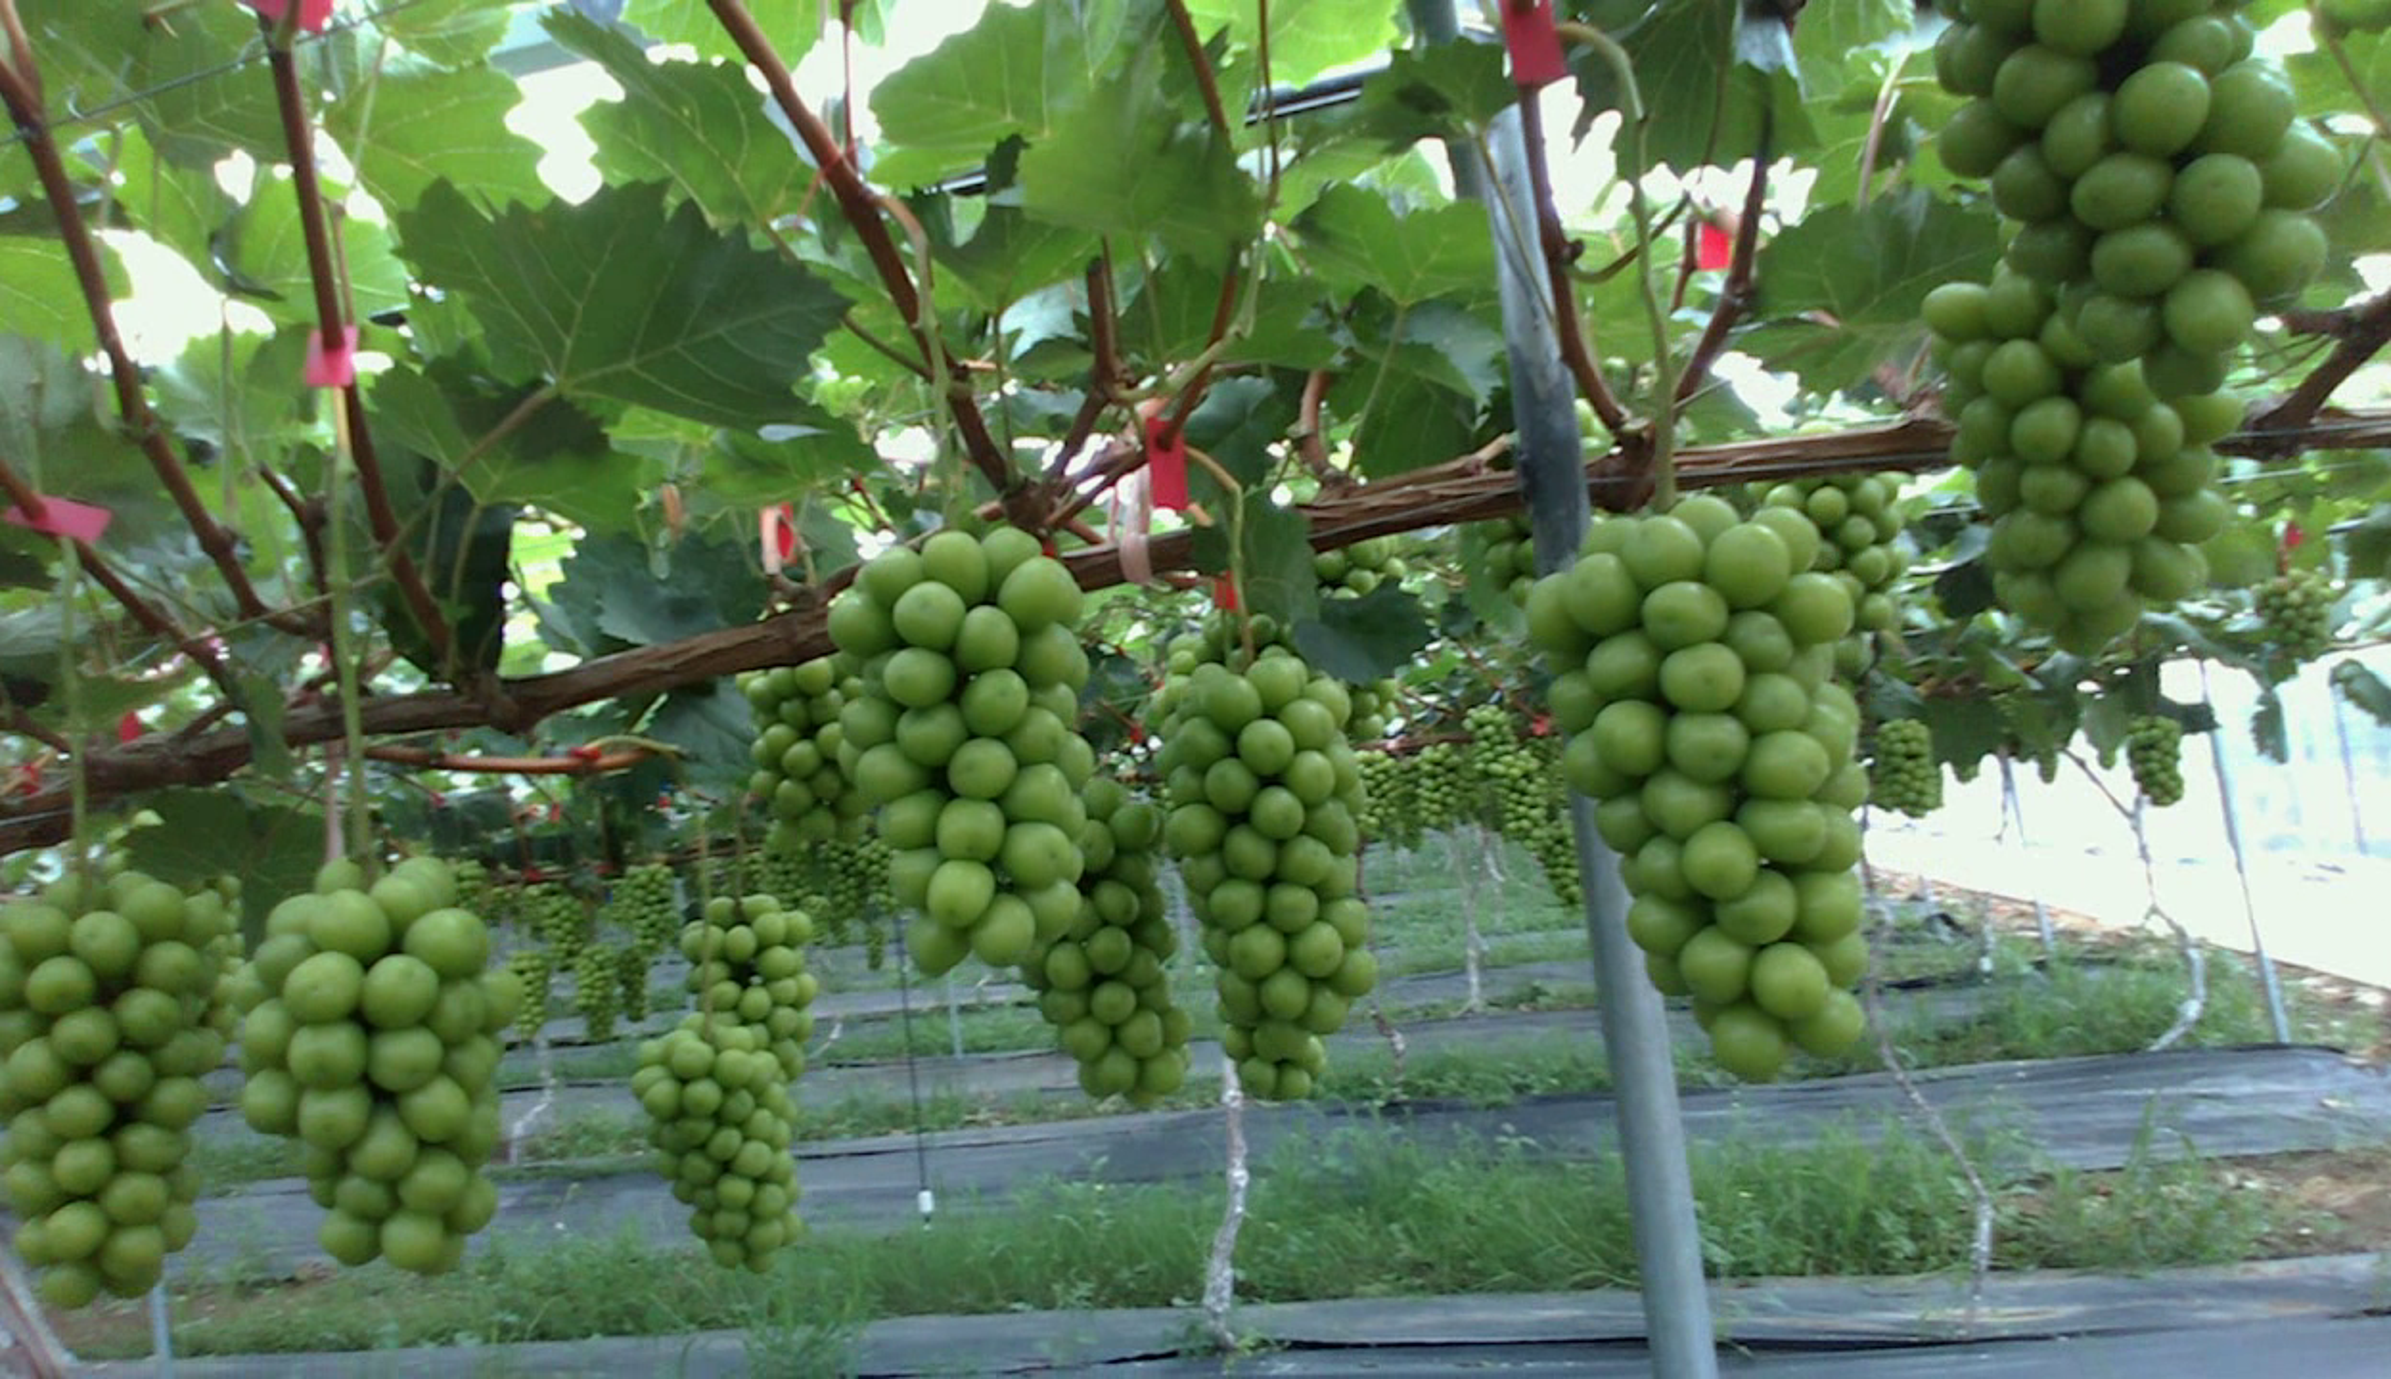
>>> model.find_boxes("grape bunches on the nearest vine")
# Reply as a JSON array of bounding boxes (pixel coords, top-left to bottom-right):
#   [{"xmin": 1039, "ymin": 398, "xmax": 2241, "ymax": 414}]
[
  {"xmin": 1931, "ymin": 2, "xmax": 2341, "ymax": 402},
  {"xmin": 1527, "ymin": 500, "xmax": 1872, "ymax": 1086},
  {"xmin": 1925, "ymin": 262, "xmax": 2243, "ymax": 655},
  {"xmin": 828, "ymin": 527, "xmax": 1094, "ymax": 973},
  {"xmin": 1157, "ymin": 655, "xmax": 1374, "ymax": 1103},
  {"xmin": 234, "ymin": 856, "xmax": 521, "ymax": 1276},
  {"xmin": 0, "ymin": 868, "xmax": 222, "ymax": 1312},
  {"xmin": 1027, "ymin": 774, "xmax": 1194, "ymax": 1115},
  {"xmin": 630, "ymin": 1013, "xmax": 799, "ymax": 1276}
]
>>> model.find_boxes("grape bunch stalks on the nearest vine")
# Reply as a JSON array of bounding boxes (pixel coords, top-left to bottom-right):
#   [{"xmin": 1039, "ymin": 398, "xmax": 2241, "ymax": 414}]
[
  {"xmin": 586, "ymin": 735, "xmax": 713, "ymax": 1042},
  {"xmin": 1558, "ymin": 19, "xmax": 1676, "ymax": 513},
  {"xmin": 1186, "ymin": 444, "xmax": 1257, "ymax": 668},
  {"xmin": 330, "ymin": 385, "xmax": 377, "ymax": 891},
  {"xmin": 874, "ymin": 193, "xmax": 958, "ymax": 529},
  {"xmin": 57, "ymin": 534, "xmax": 92, "ymax": 914}
]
